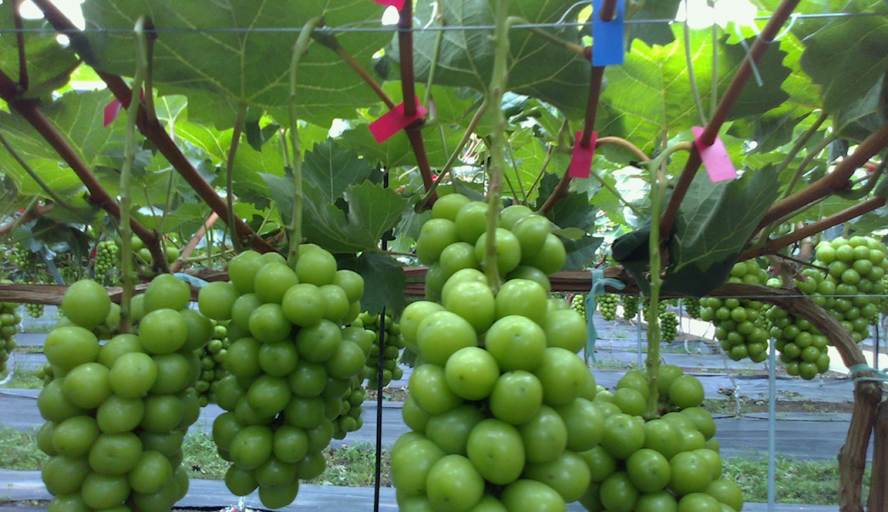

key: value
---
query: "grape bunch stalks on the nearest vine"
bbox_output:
[285,16,322,270]
[647,142,691,415]
[483,0,508,297]
[117,10,150,331]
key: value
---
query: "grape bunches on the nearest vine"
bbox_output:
[580,364,740,511]
[393,268,606,511]
[199,243,373,507]
[37,272,213,510]
[416,193,567,302]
